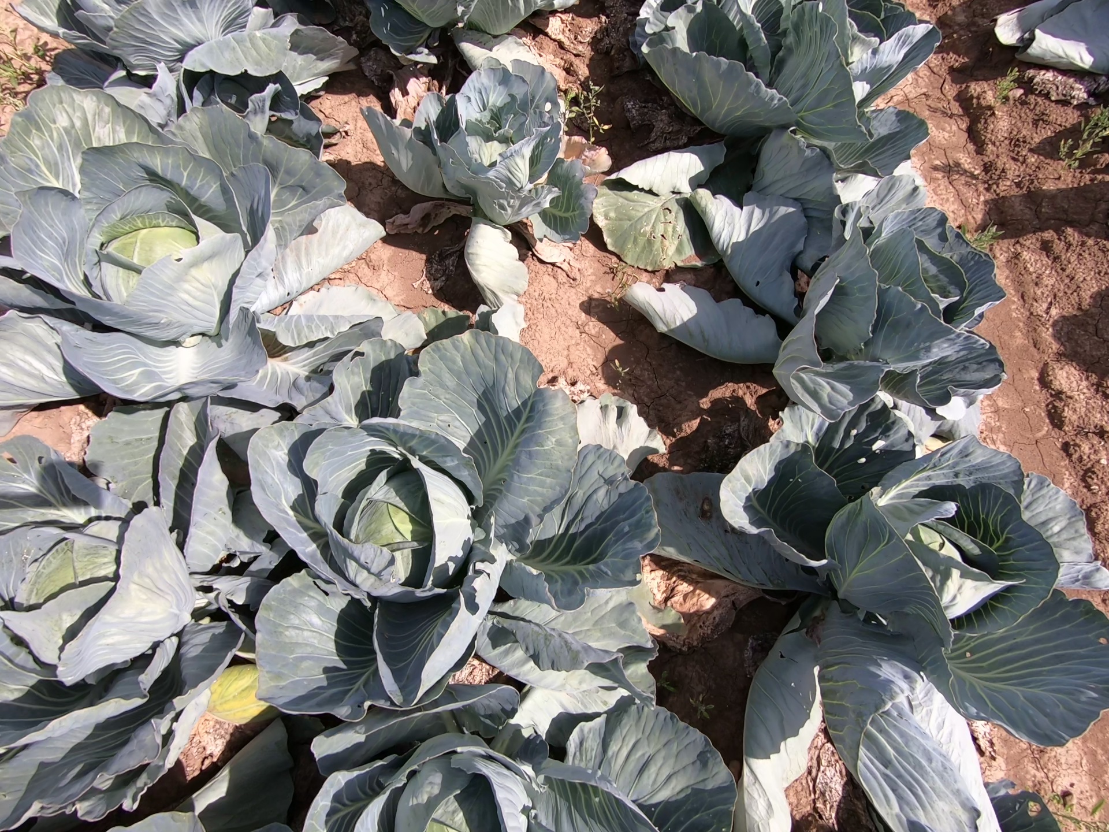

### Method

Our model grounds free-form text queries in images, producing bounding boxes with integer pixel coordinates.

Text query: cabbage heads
[76,2,217,54]
[14,519,176,664]
[345,471,472,592]
[846,512,969,621]
[96,211,235,330]
[396,749,533,831]
[783,23,876,122]
[448,124,529,192]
